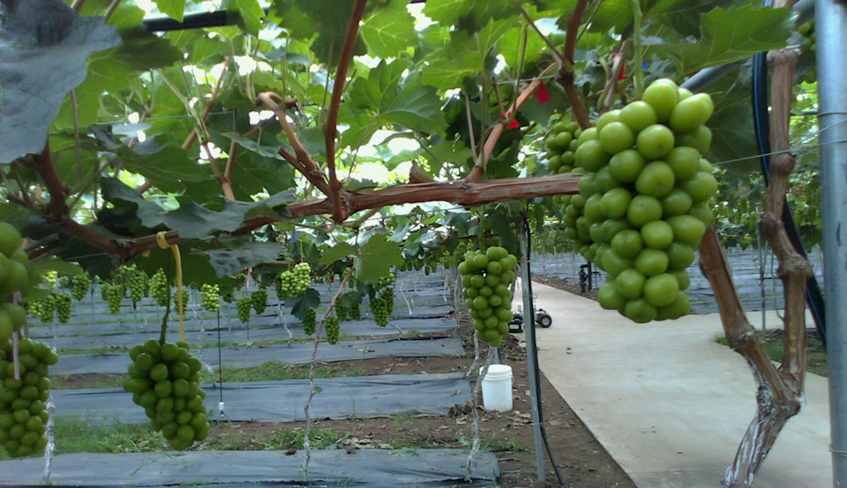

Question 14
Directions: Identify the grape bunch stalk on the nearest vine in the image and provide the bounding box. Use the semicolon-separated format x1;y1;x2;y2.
633;0;644;102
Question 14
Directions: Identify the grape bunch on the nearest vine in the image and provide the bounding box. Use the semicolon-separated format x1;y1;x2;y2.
576;77;717;322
